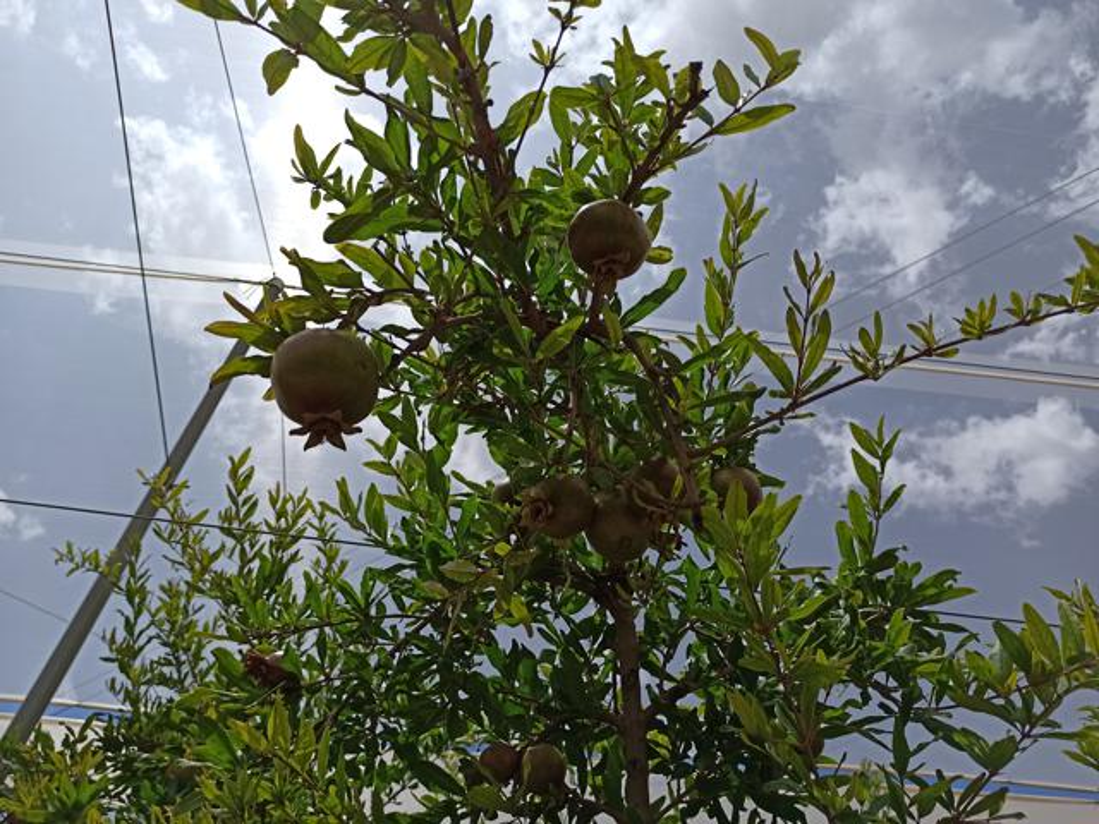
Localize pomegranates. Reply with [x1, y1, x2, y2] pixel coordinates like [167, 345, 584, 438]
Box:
[519, 479, 596, 539]
[268, 328, 381, 451]
[488, 481, 513, 505]
[709, 465, 764, 515]
[519, 743, 568, 793]
[246, 649, 288, 690]
[641, 457, 678, 498]
[462, 743, 520, 790]
[587, 488, 659, 563]
[568, 197, 651, 292]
